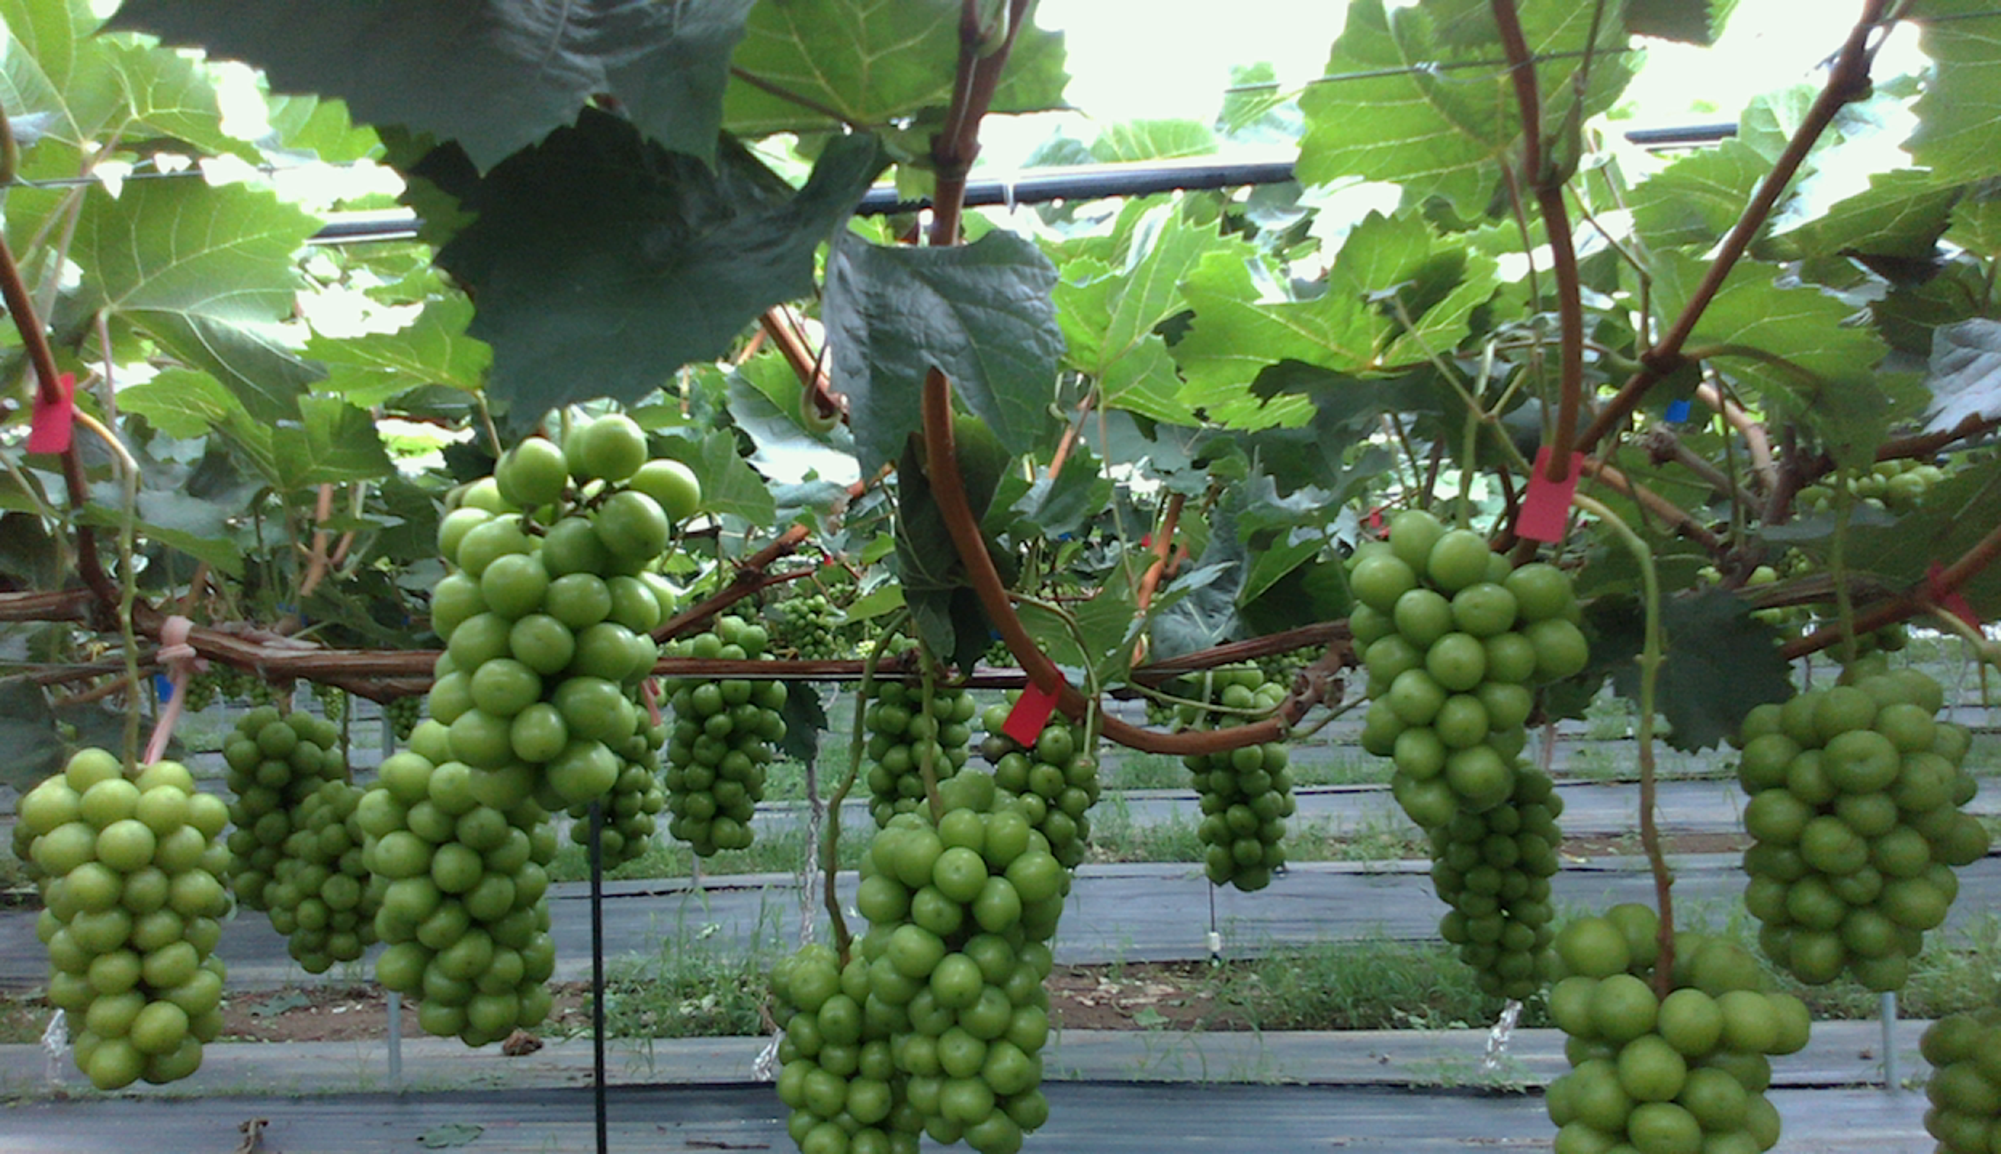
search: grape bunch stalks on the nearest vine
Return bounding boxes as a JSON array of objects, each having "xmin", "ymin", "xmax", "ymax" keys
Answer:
[
  {"xmin": 917, "ymin": 631, "xmax": 948, "ymax": 825},
  {"xmin": 558, "ymin": 407, "xmax": 571, "ymax": 450},
  {"xmin": 824, "ymin": 609, "xmax": 911, "ymax": 973},
  {"xmin": 72, "ymin": 406, "xmax": 139, "ymax": 784},
  {"xmin": 1575, "ymin": 495, "xmax": 1674, "ymax": 1002},
  {"xmin": 1829, "ymin": 452, "xmax": 1855, "ymax": 688}
]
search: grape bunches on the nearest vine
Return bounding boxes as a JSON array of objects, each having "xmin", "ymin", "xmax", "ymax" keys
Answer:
[
  {"xmin": 428, "ymin": 412, "xmax": 701, "ymax": 813},
  {"xmin": 358, "ymin": 720, "xmax": 556, "ymax": 1050},
  {"xmin": 856, "ymin": 768, "xmax": 1061, "ymax": 1152},
  {"xmin": 765, "ymin": 933, "xmax": 924, "ymax": 1152},
  {"xmin": 1738, "ymin": 659, "xmax": 1991, "ymax": 994},
  {"xmin": 21, "ymin": 747, "xmax": 231, "ymax": 1091},
  {"xmin": 1348, "ymin": 508, "xmax": 1589, "ymax": 829},
  {"xmin": 1547, "ymin": 901, "xmax": 1810, "ymax": 1152}
]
